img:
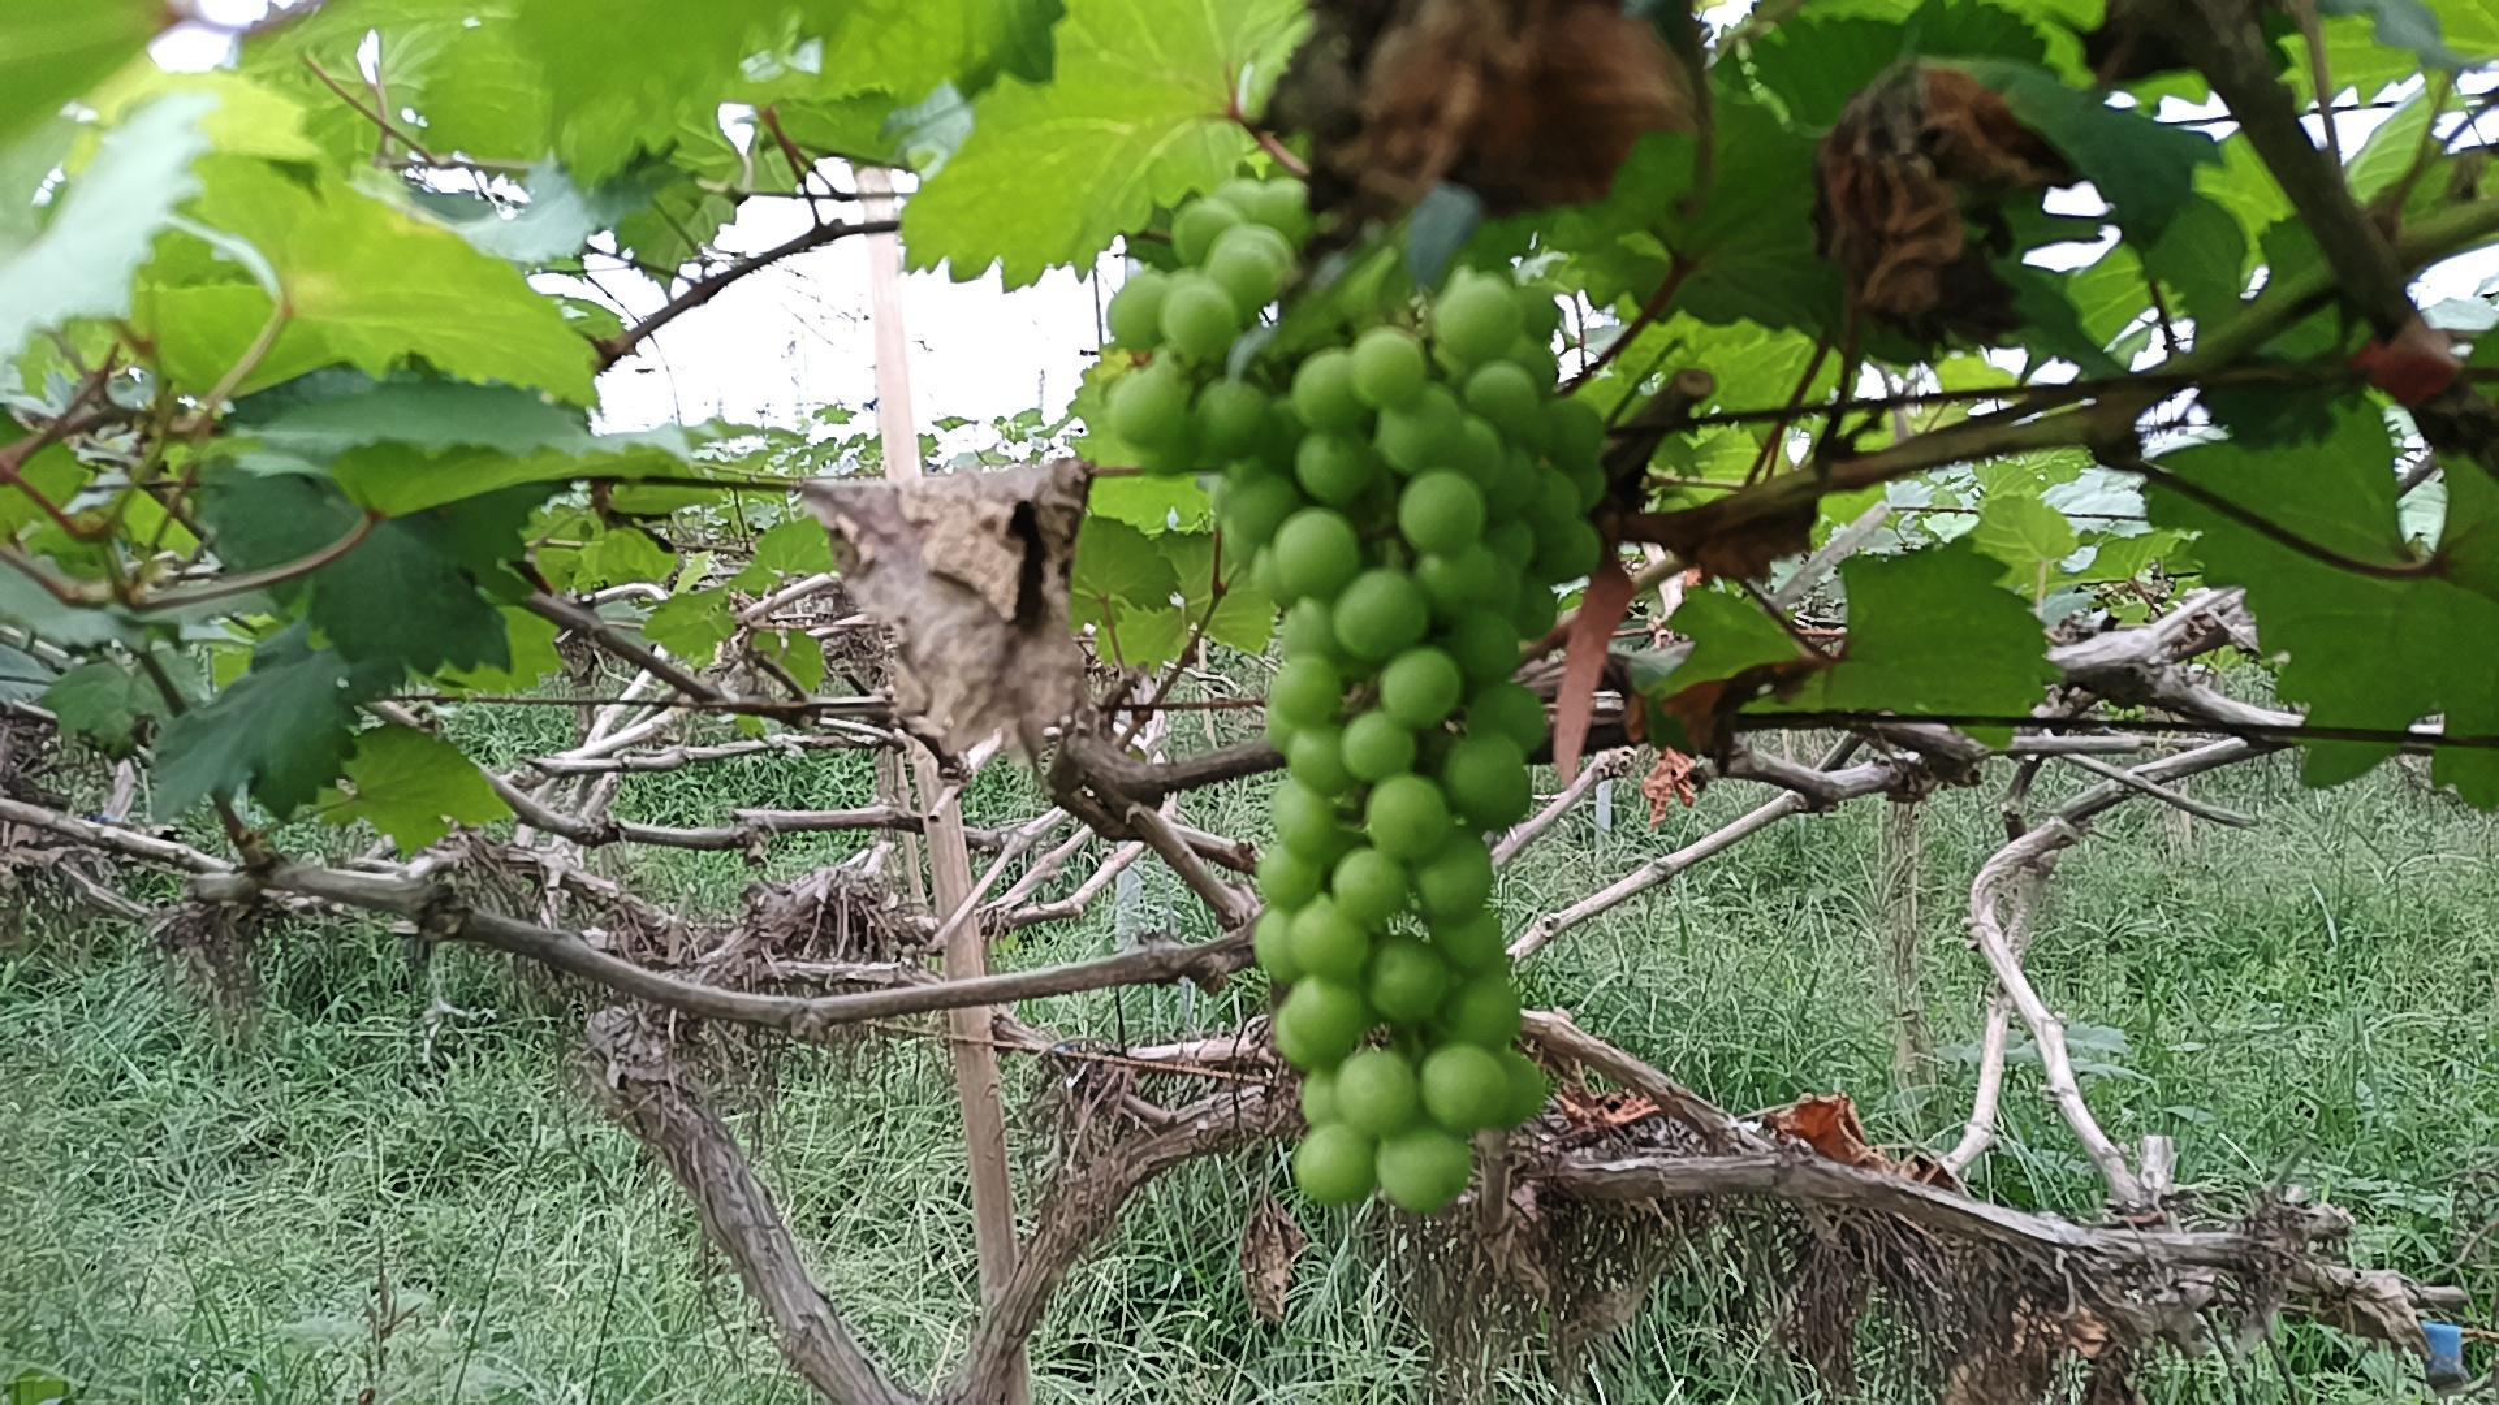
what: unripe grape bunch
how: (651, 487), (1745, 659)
(1104, 182), (1609, 1211)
